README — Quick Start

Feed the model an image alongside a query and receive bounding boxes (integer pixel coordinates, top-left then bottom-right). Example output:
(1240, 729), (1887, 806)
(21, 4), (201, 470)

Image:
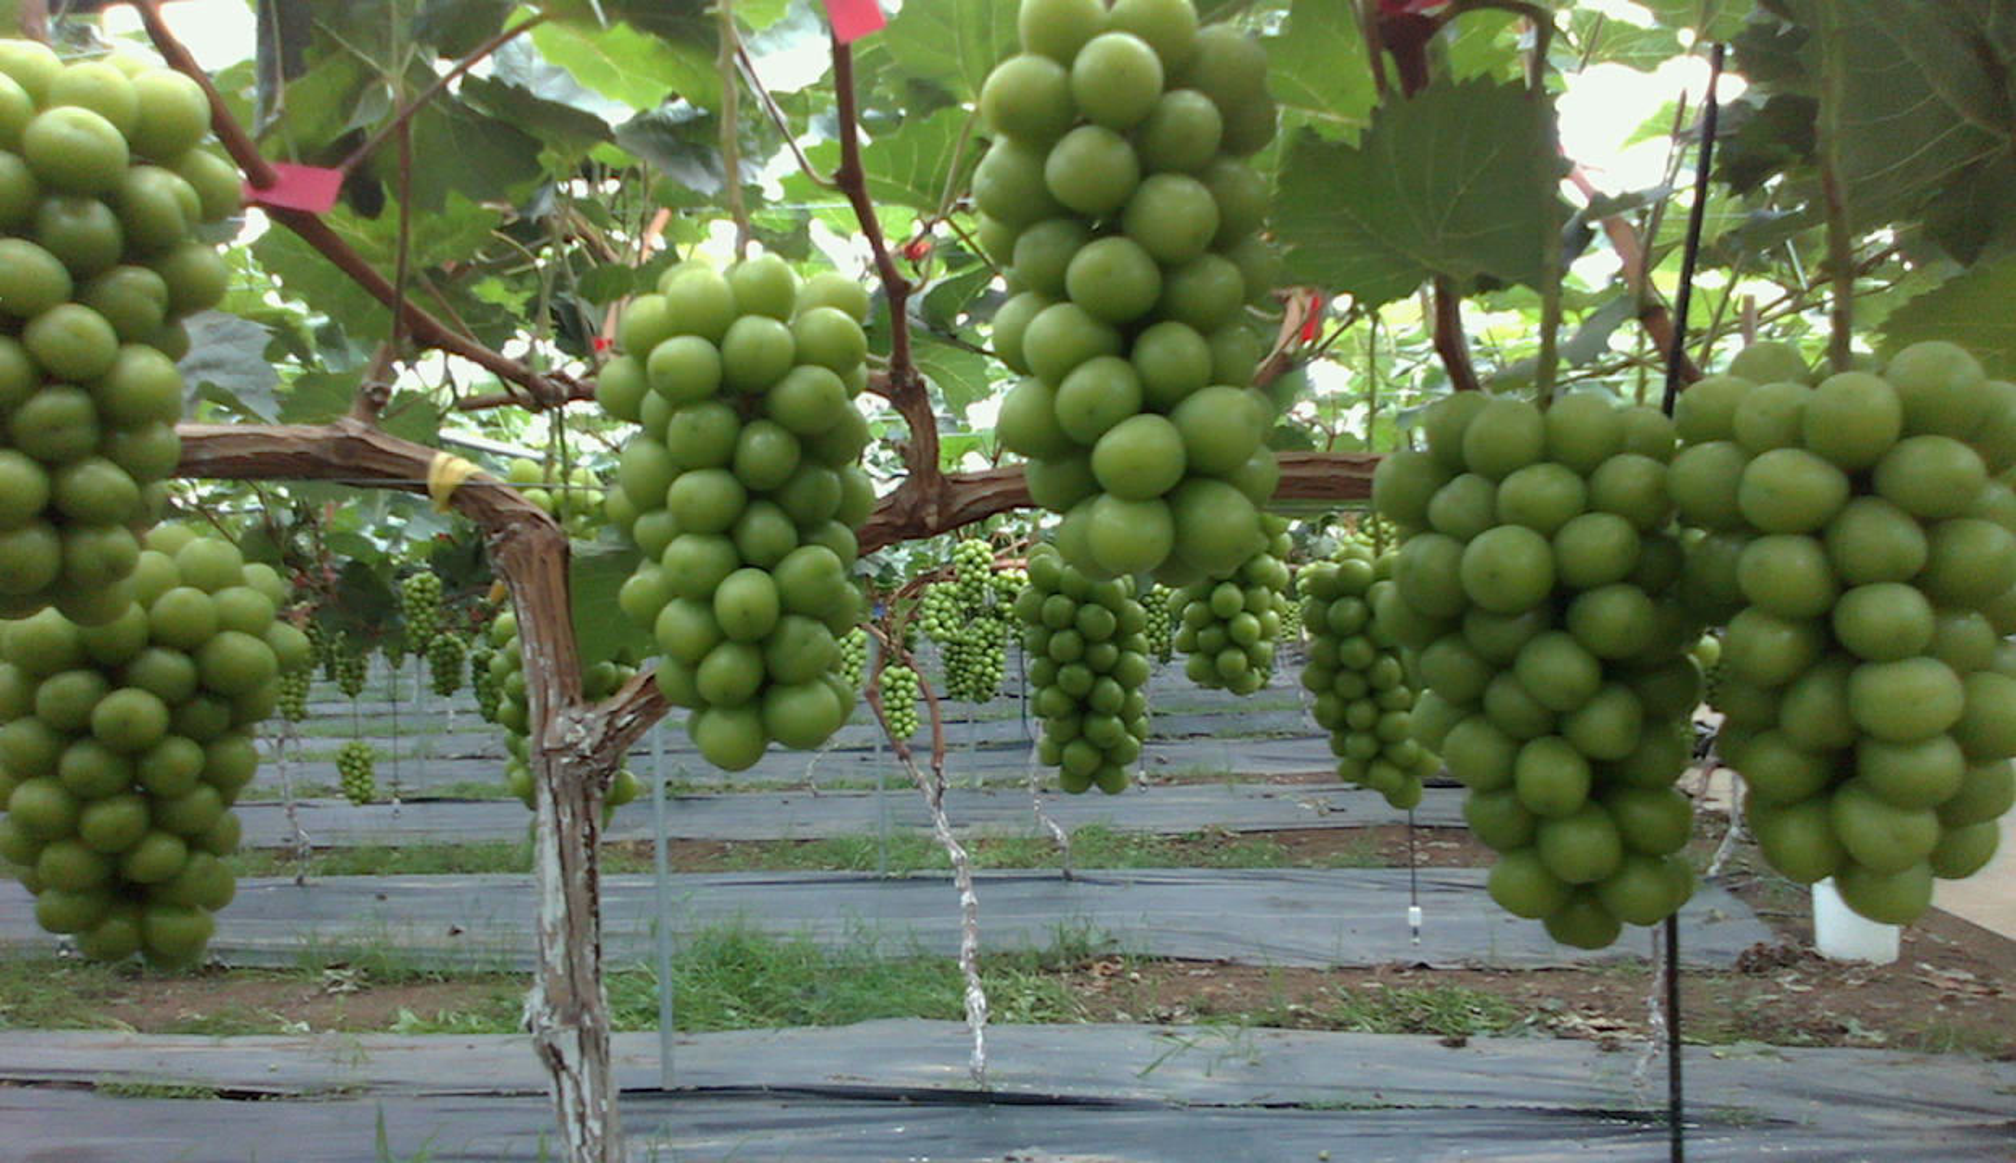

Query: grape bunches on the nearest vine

(1669, 341), (2014, 924)
(1371, 393), (1706, 953)
(593, 254), (872, 774)
(0, 523), (313, 972)
(0, 34), (236, 625)
(976, 0), (1281, 593)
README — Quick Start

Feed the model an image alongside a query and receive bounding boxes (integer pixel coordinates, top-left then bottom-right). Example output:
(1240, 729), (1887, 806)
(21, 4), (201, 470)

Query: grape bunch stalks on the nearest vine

(1436, 0), (1560, 404)
(1811, 6), (1856, 367)
(708, 3), (751, 257)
